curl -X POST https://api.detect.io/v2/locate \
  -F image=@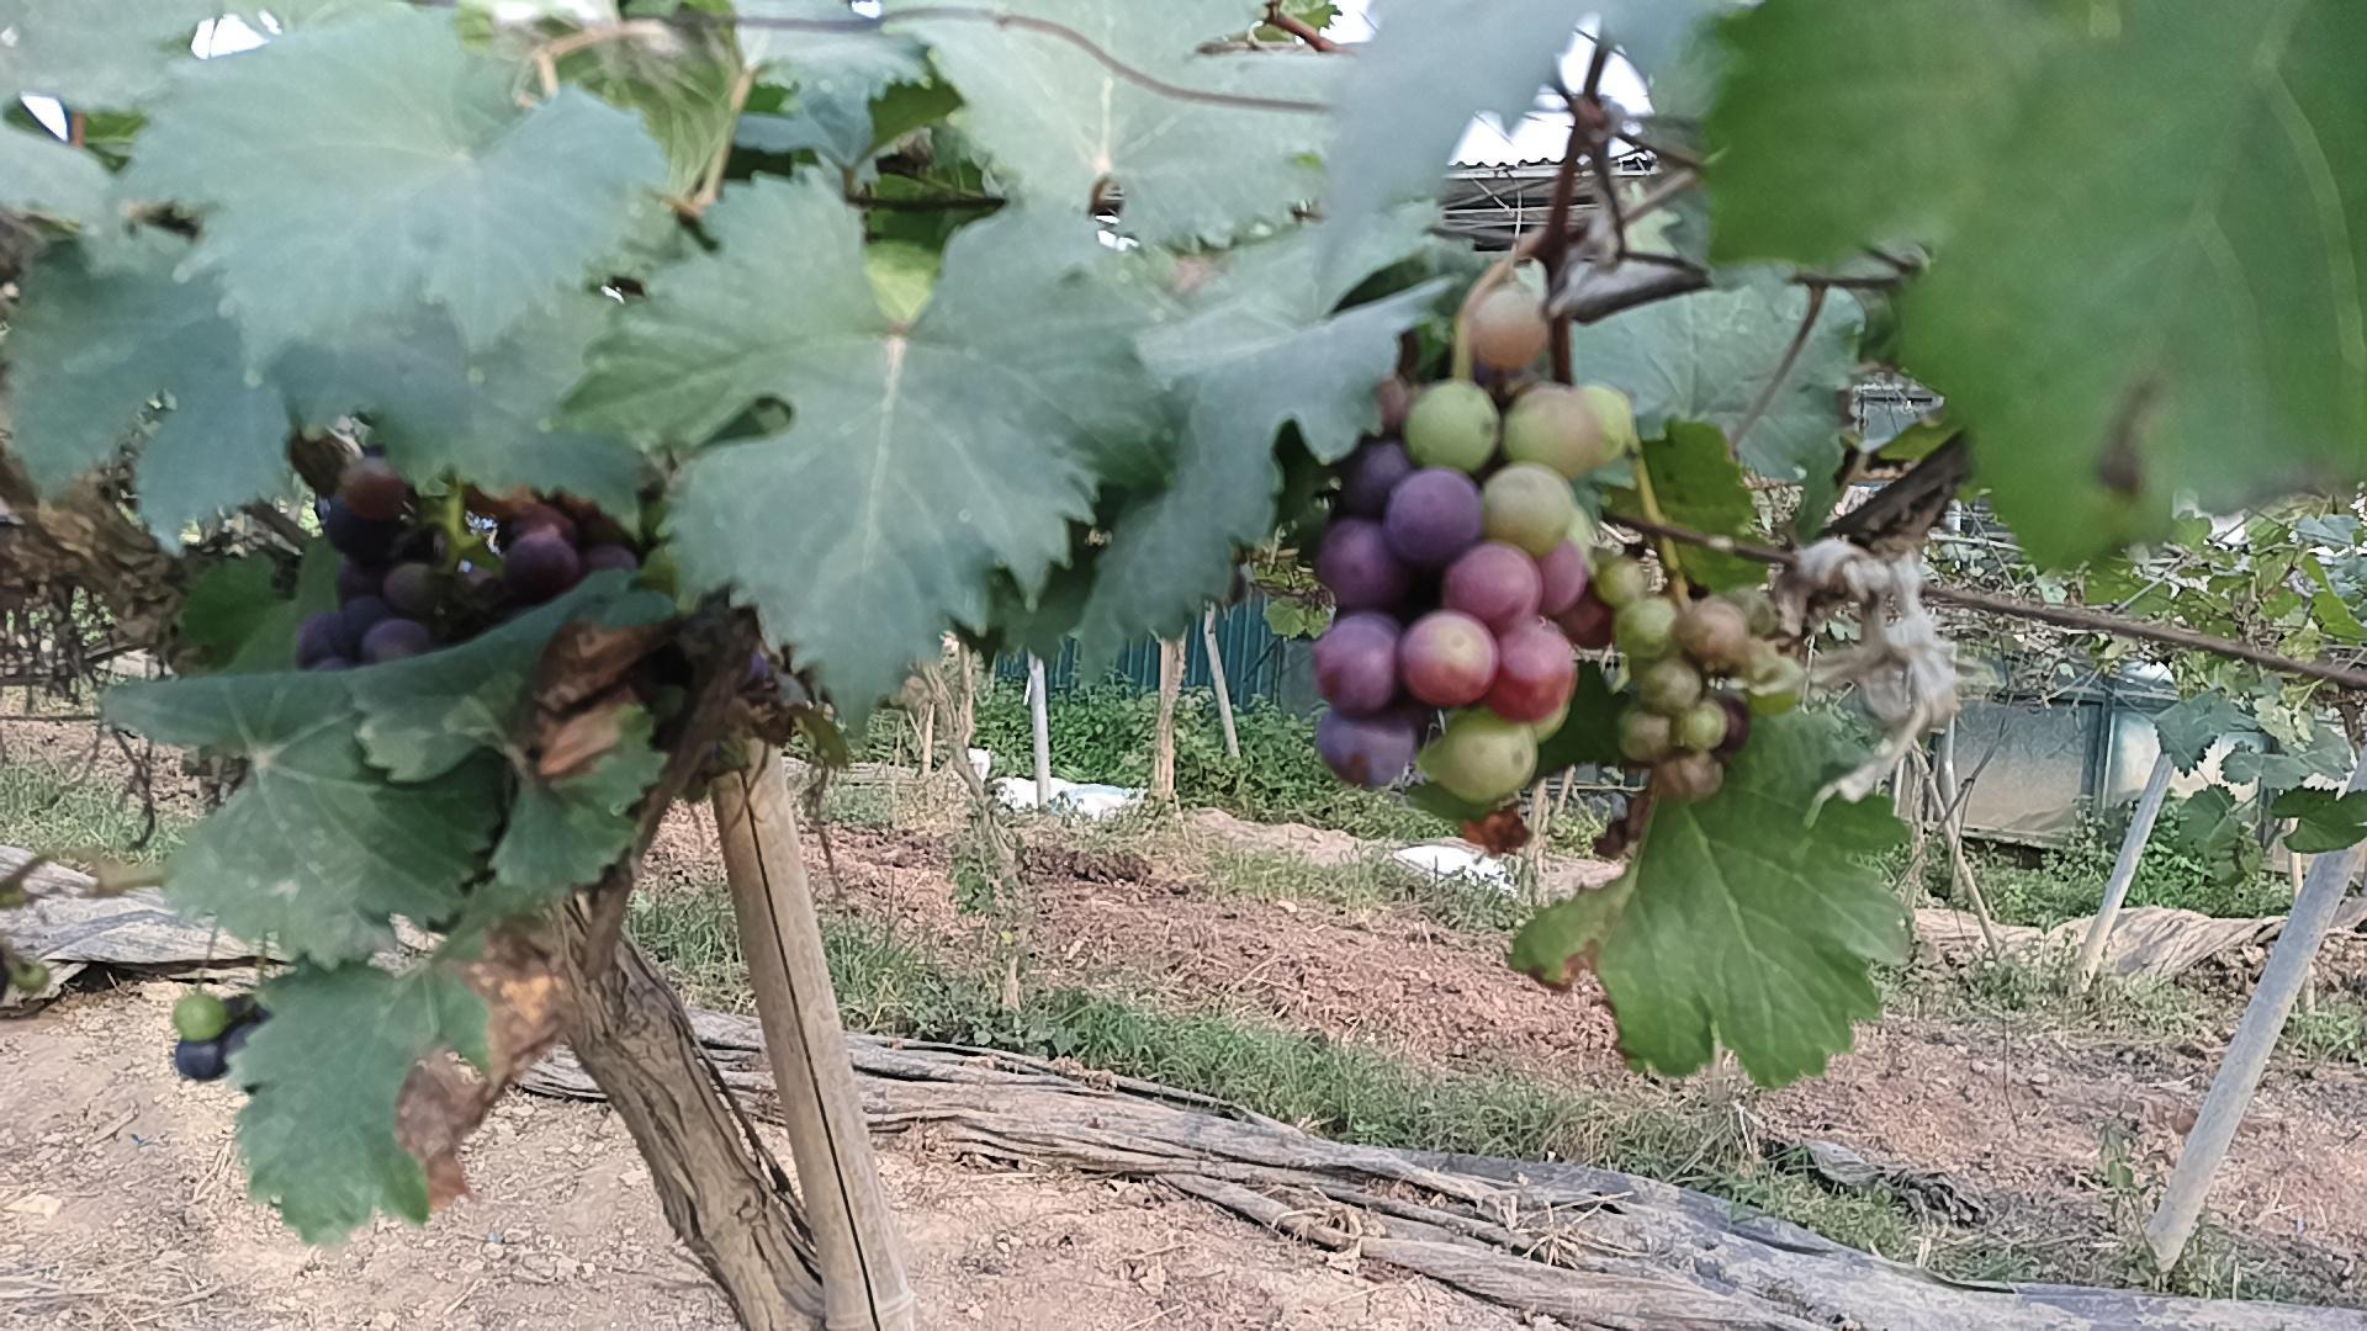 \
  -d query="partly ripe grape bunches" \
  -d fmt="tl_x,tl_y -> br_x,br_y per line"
1313,282 -> 1804,804
296,456 -> 771,758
